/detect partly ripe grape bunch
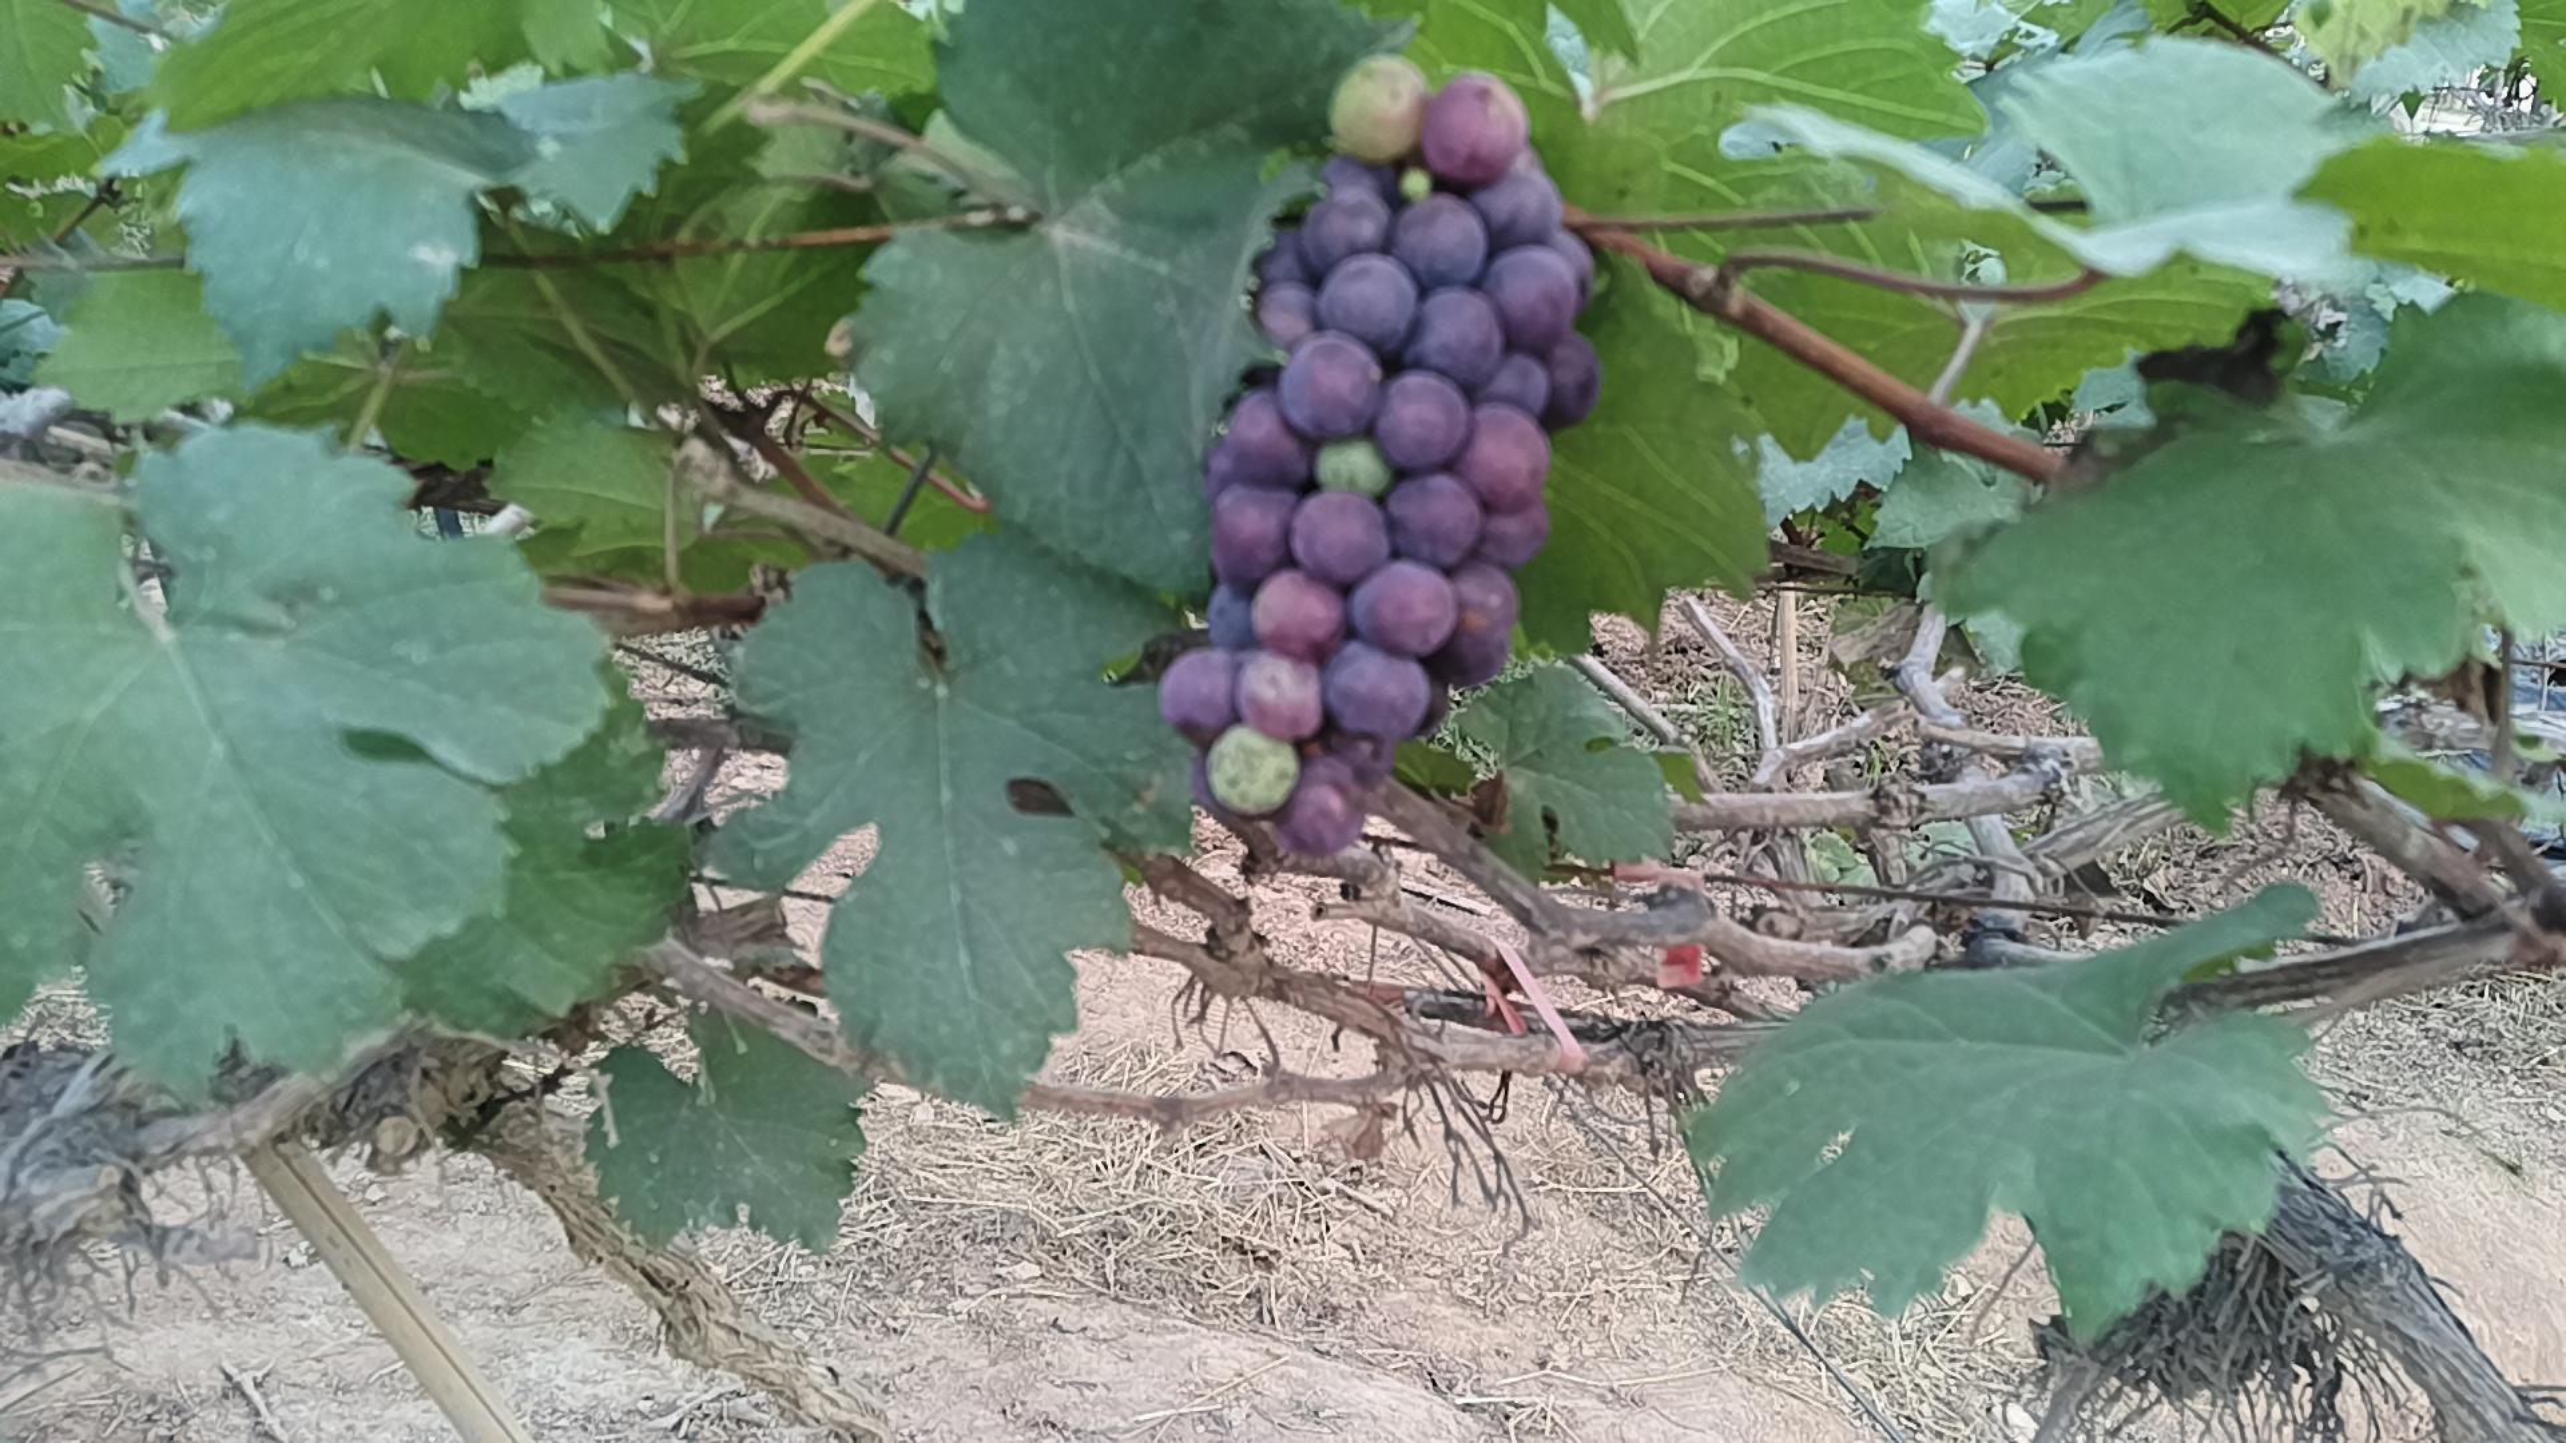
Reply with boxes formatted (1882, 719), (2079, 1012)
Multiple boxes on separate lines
(1160, 51), (1600, 860)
